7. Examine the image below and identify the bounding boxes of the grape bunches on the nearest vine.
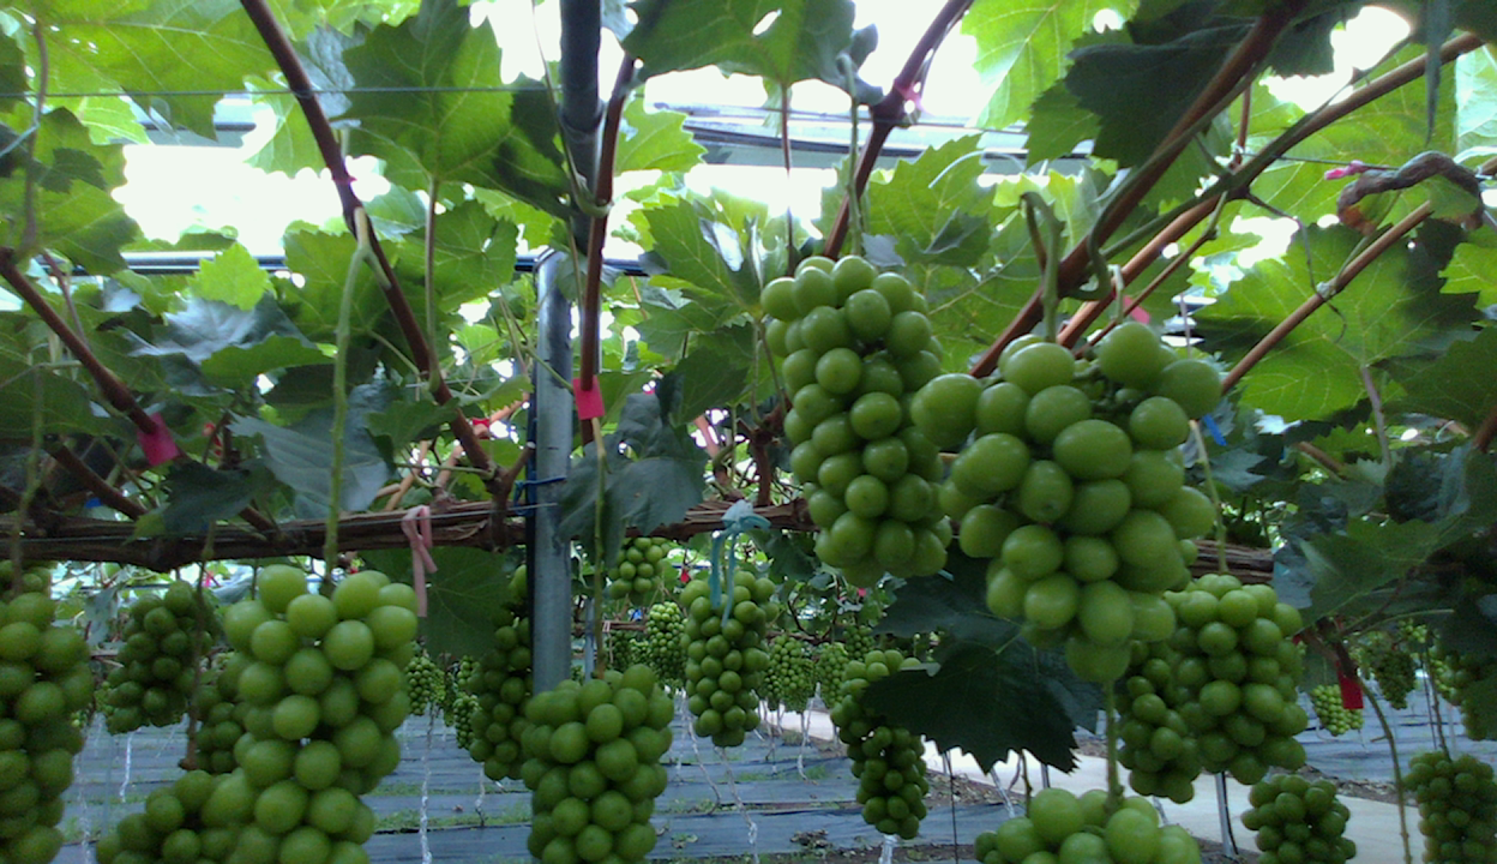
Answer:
[0,590,91,863]
[1170,575,1307,786]
[214,564,419,863]
[908,323,1219,684]
[91,773,238,863]
[521,664,675,863]
[994,787,1198,863]
[760,254,948,589]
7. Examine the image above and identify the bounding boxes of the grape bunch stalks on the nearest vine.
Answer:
[838,52,862,257]
[10,359,78,595]
[181,526,215,770]
[591,420,607,679]
[1104,685,1123,814]
[1191,424,1231,574]
[1021,193,1064,342]
[319,208,392,596]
